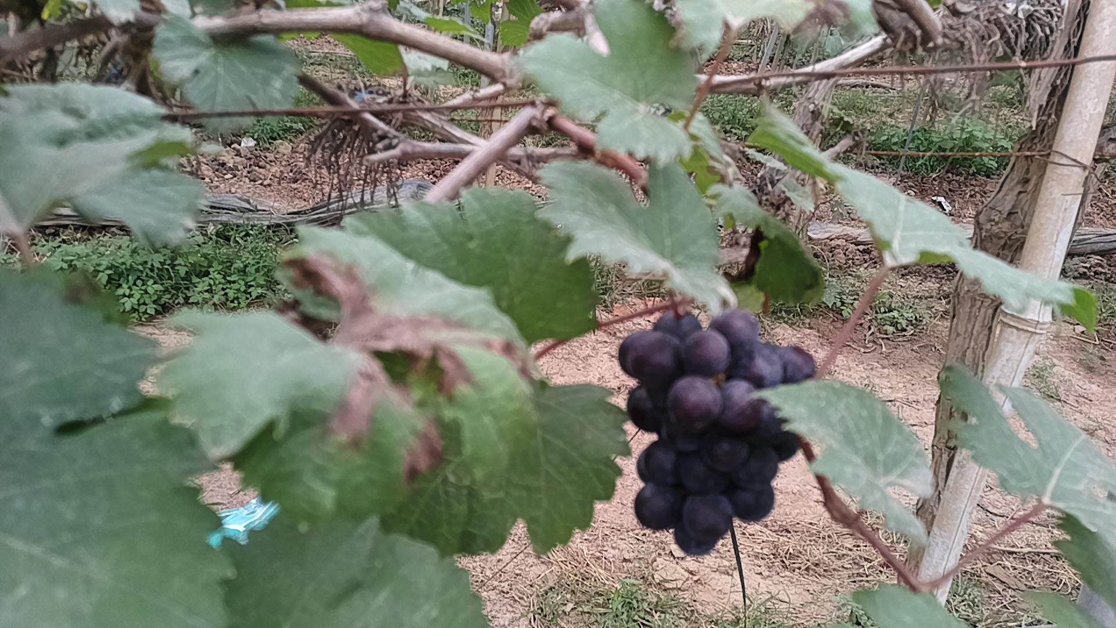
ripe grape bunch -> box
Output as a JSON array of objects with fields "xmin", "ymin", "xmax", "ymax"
[{"xmin": 618, "ymin": 308, "xmax": 815, "ymax": 555}]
